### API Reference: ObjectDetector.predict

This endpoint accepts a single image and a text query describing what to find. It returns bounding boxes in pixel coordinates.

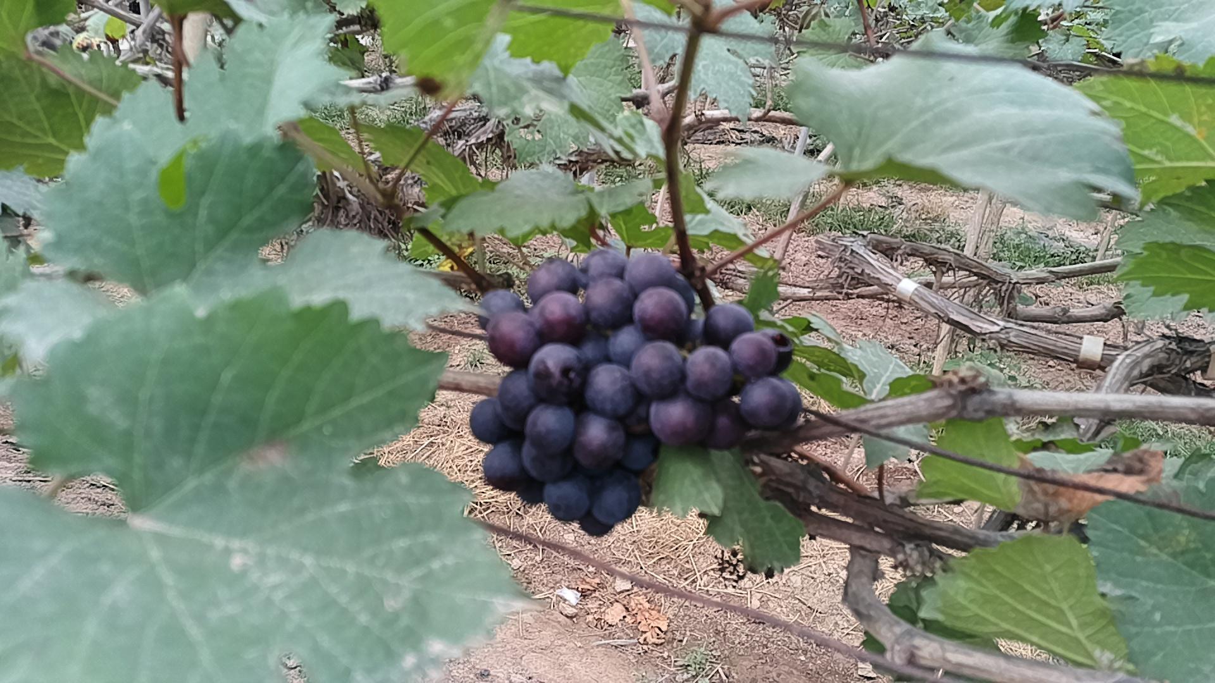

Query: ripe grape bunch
[470,247,801,532]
